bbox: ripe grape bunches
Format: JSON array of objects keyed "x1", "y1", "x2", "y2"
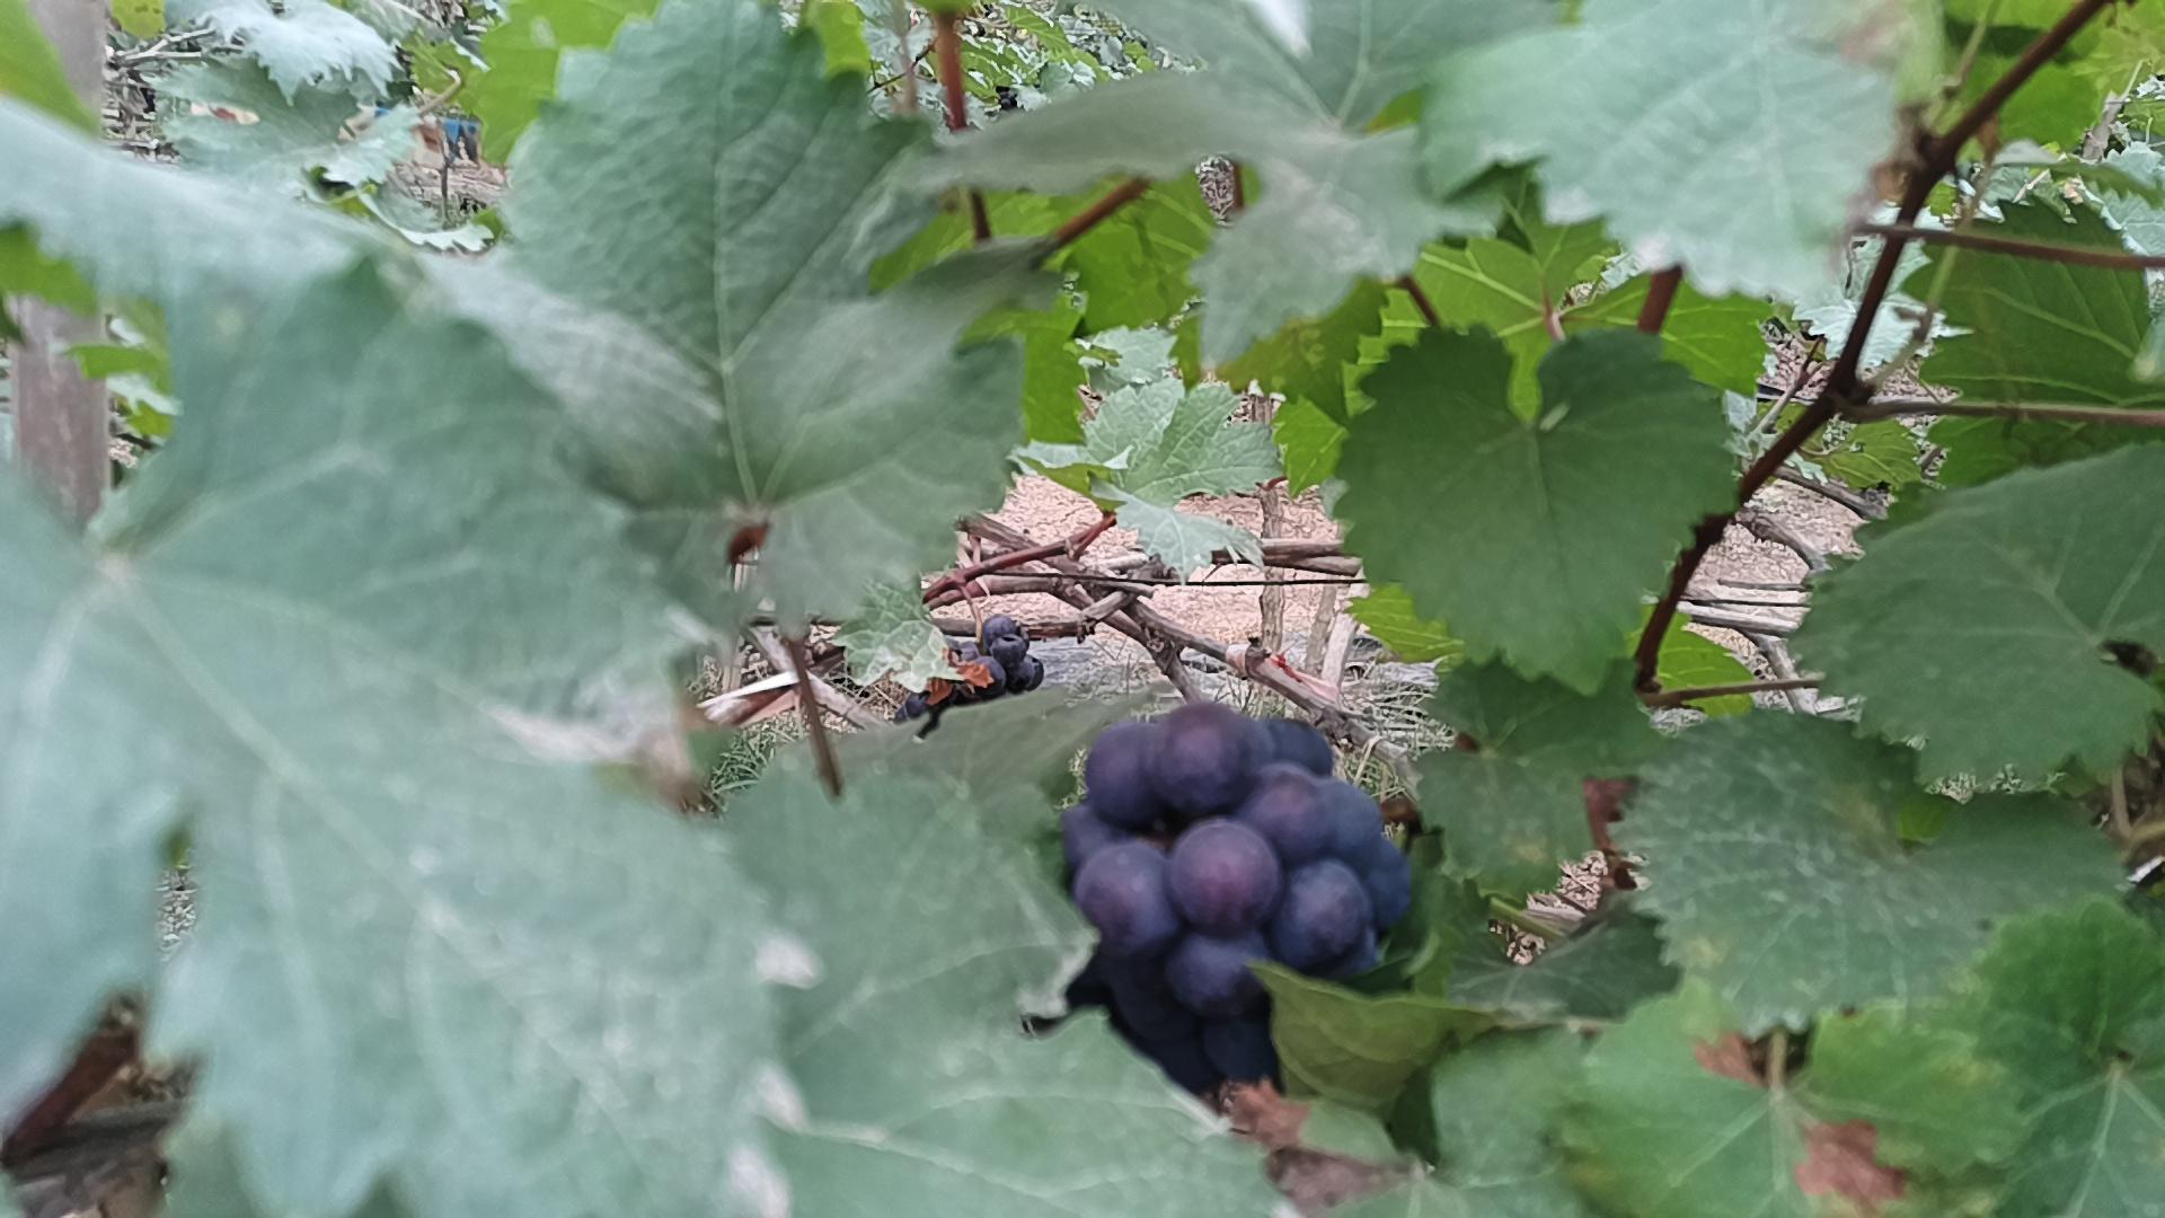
[
  {"x1": 1061, "y1": 705, "x2": 1410, "y2": 1104},
  {"x1": 895, "y1": 616, "x2": 1043, "y2": 734}
]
